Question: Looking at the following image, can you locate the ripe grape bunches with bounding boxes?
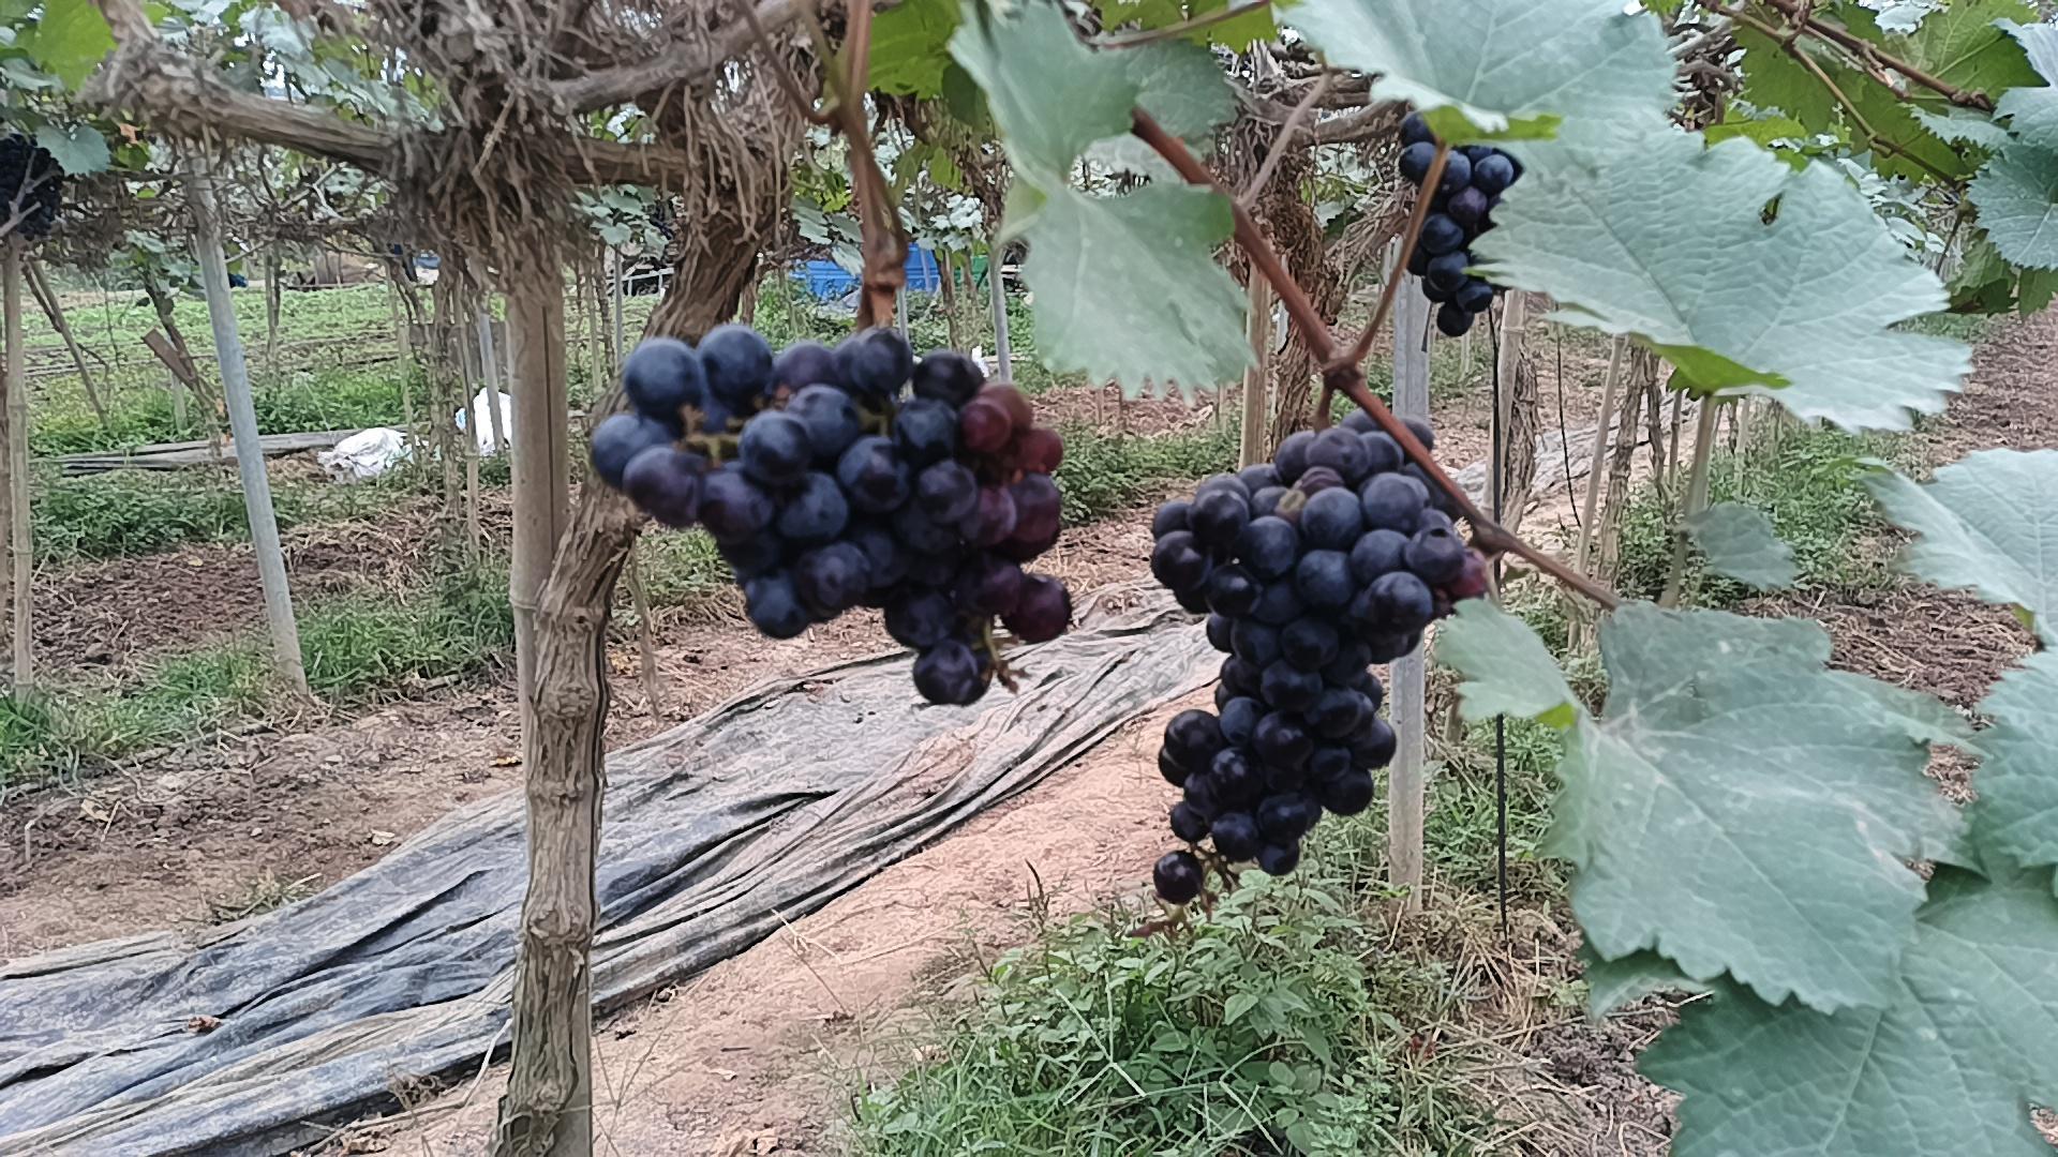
[591,325,1070,704]
[0,134,66,240]
[1398,108,1523,336]
[1152,412,1486,903]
